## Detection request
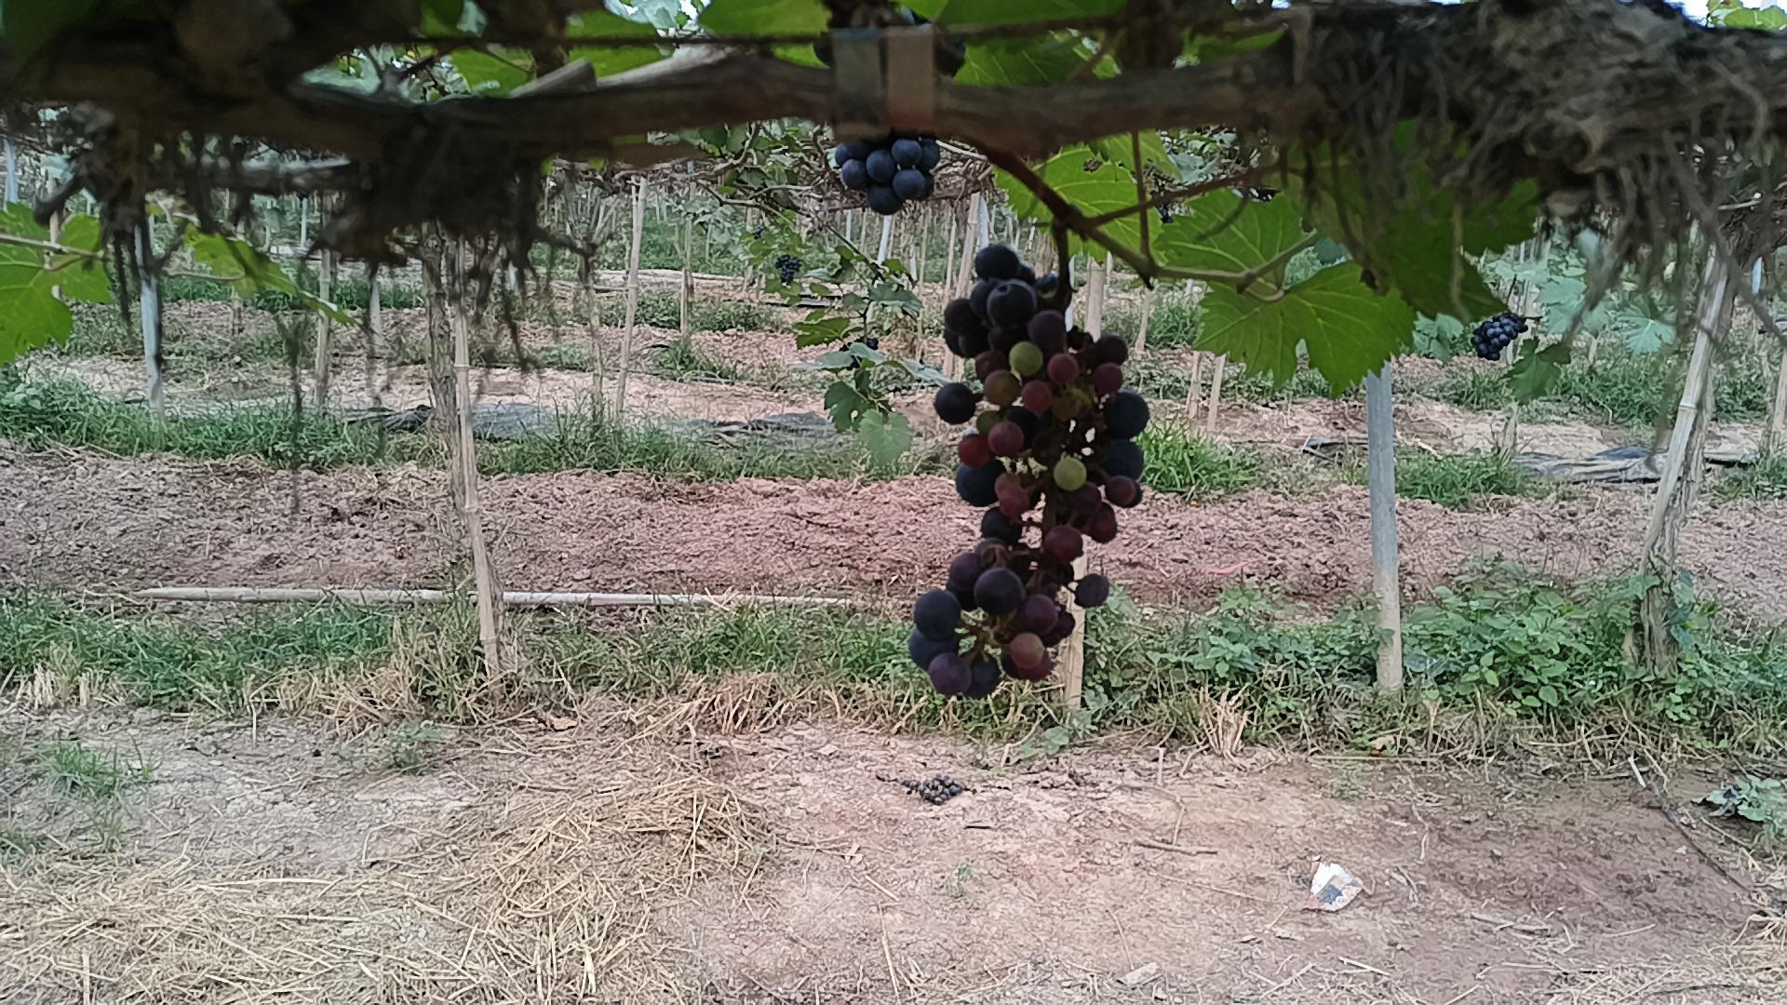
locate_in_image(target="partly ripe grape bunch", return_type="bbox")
[908,245,1149,697]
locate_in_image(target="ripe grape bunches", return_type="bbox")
[815,0,964,215]
[773,254,802,286]
[1470,311,1538,360]
[834,337,885,371]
